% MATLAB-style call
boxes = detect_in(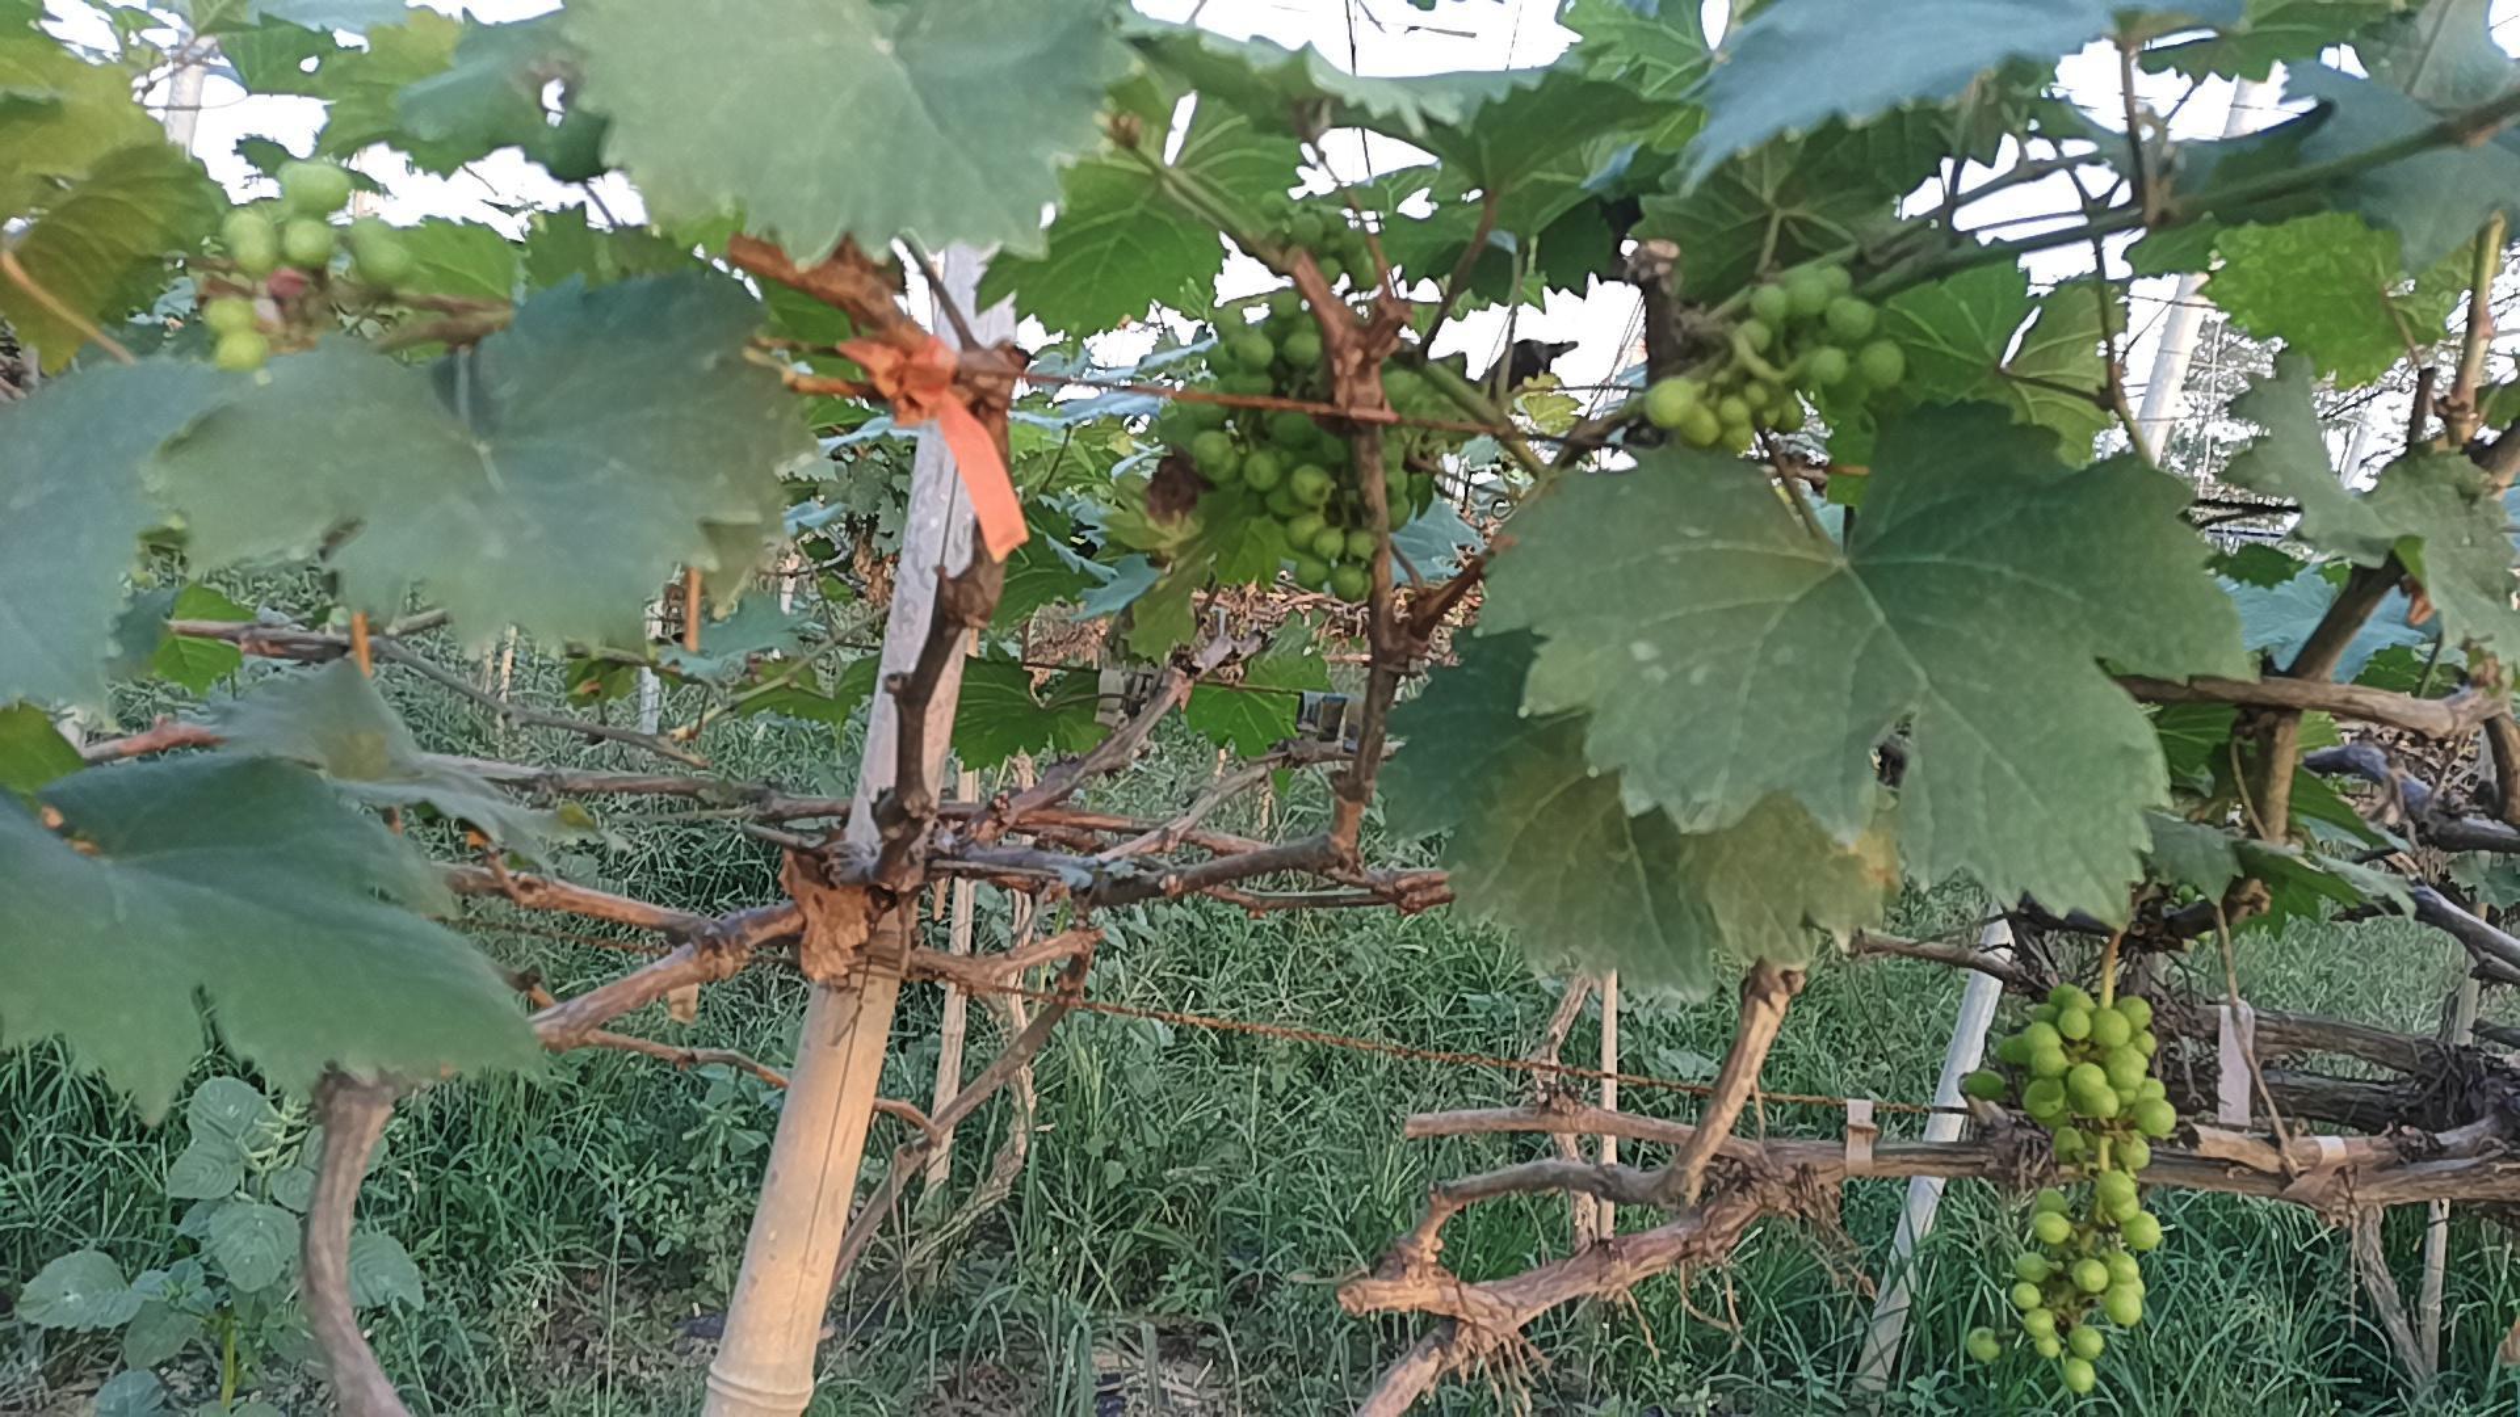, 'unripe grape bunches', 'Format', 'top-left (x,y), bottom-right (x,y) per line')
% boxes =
(198, 159), (416, 370)
(1175, 190), (1414, 604)
(1965, 983), (2180, 1392)
(1643, 264), (1904, 451)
